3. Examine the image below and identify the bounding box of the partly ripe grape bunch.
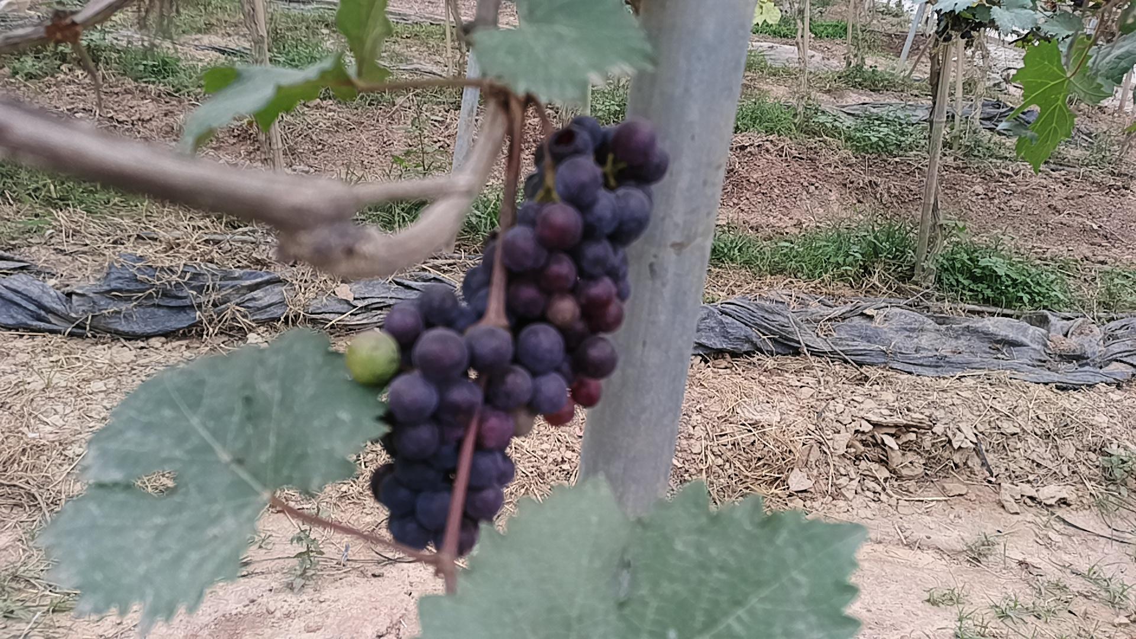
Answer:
[347,116,668,554]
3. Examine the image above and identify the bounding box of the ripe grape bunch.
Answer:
[935,3,994,47]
